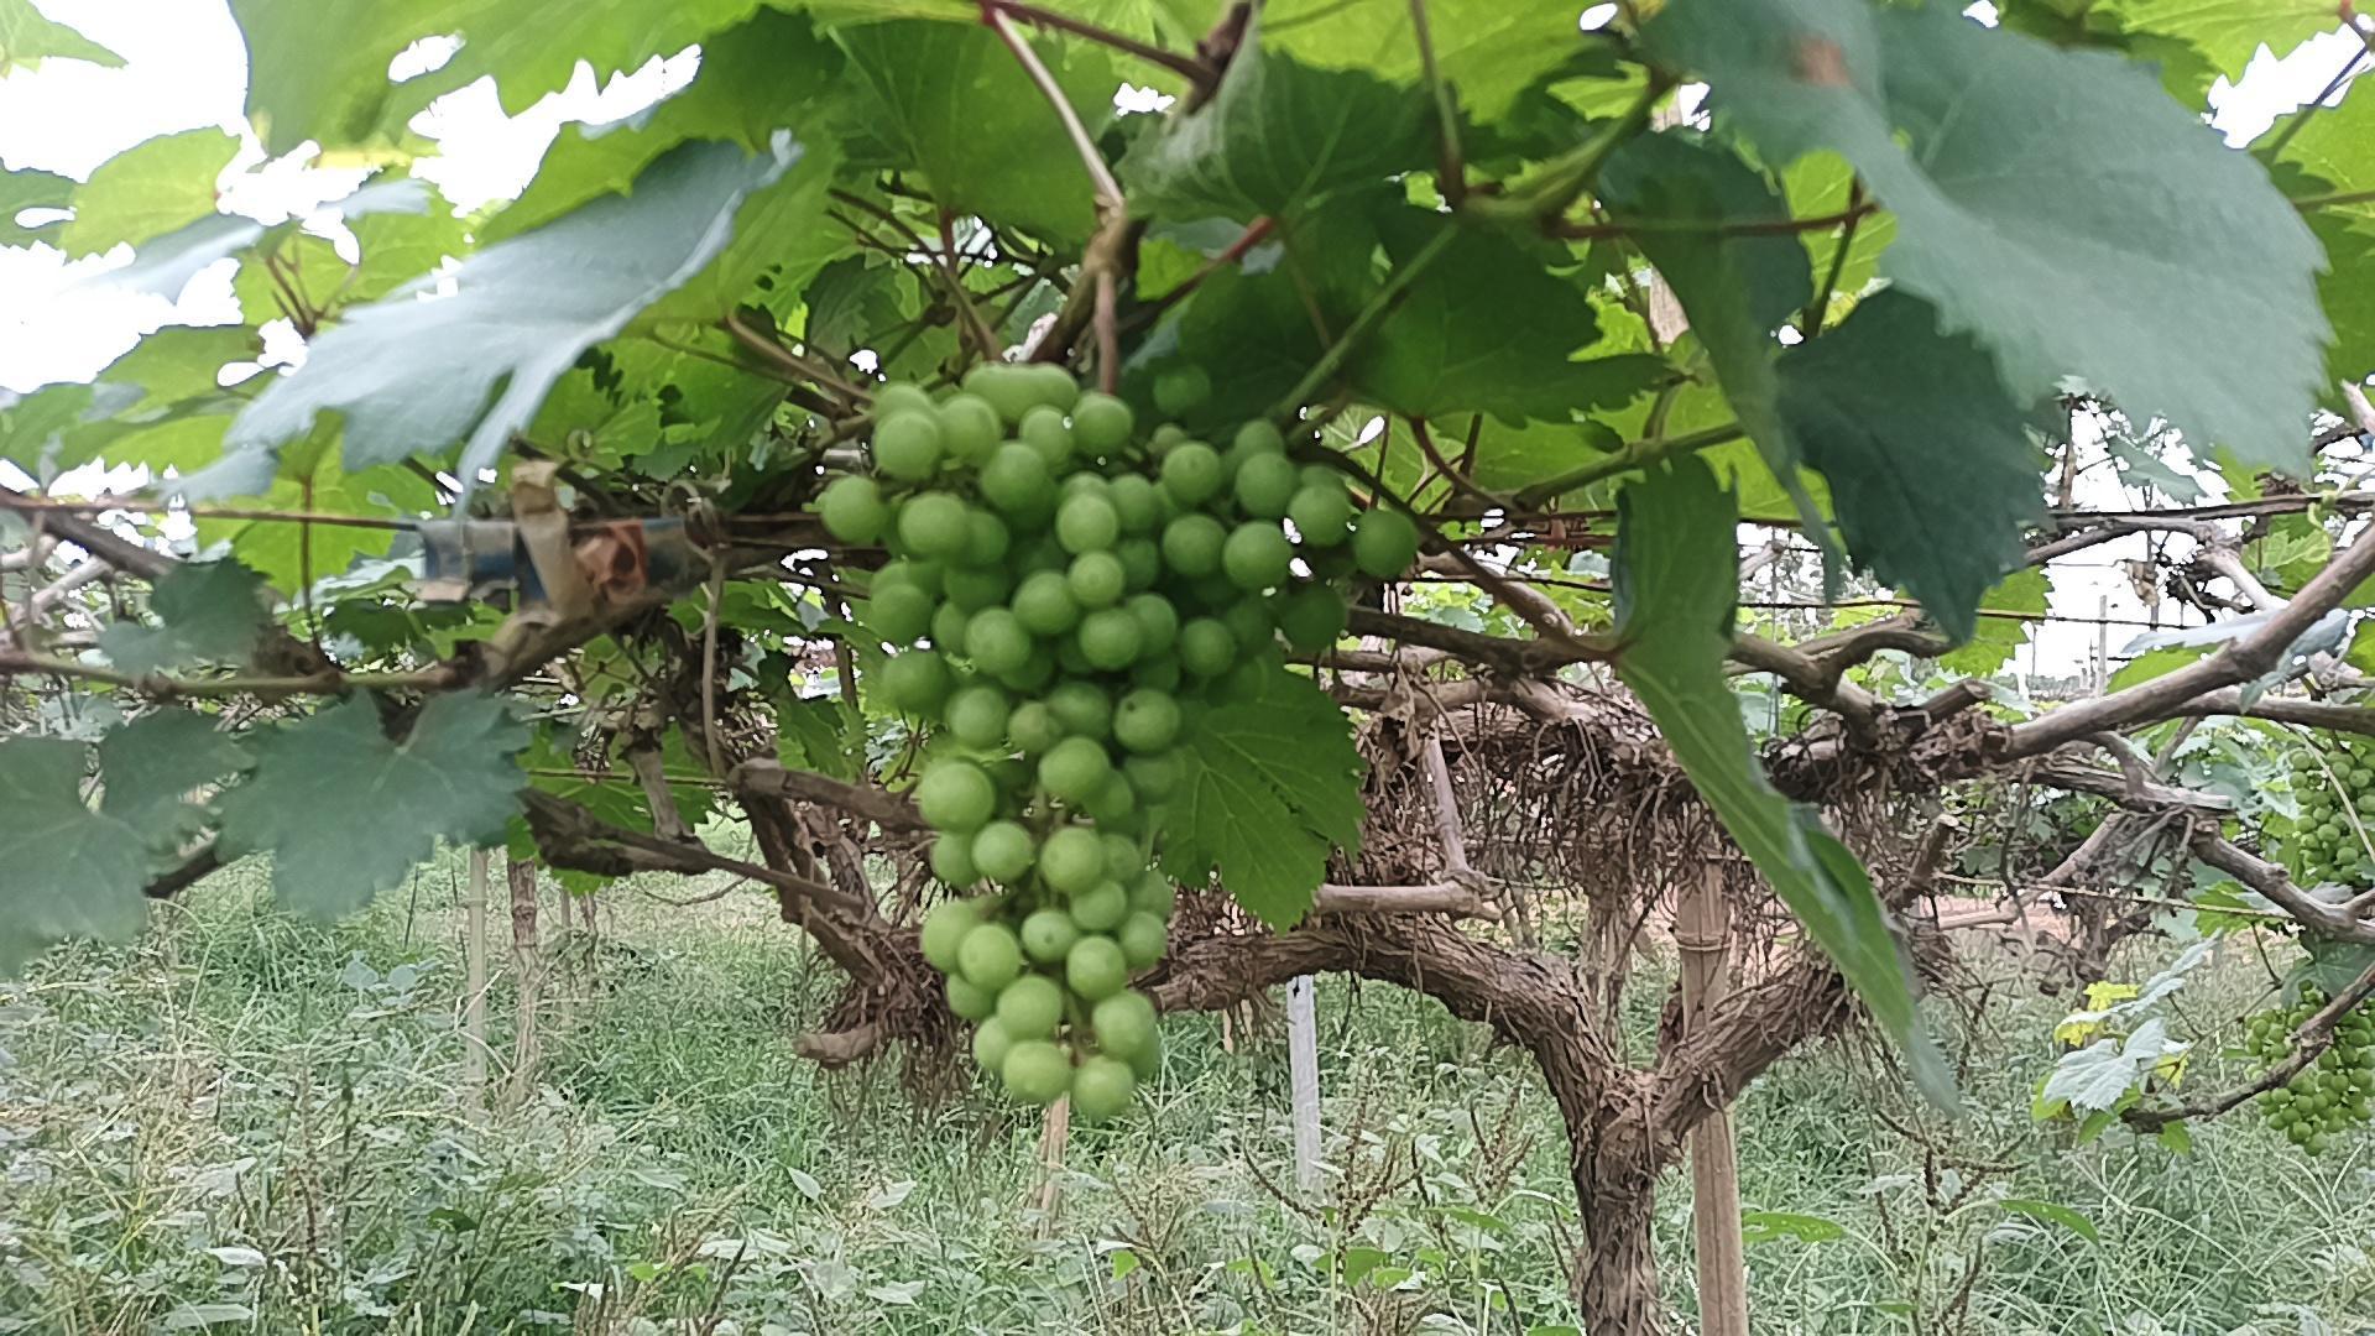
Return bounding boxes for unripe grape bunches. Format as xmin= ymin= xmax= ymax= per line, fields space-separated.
xmin=2255 ymin=983 xmax=2374 ymax=1157
xmin=818 ymin=360 xmax=1425 ymax=1124
xmin=2287 ymin=748 xmax=2374 ymax=889
xmin=2244 ymin=977 xmax=2335 ymax=1081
